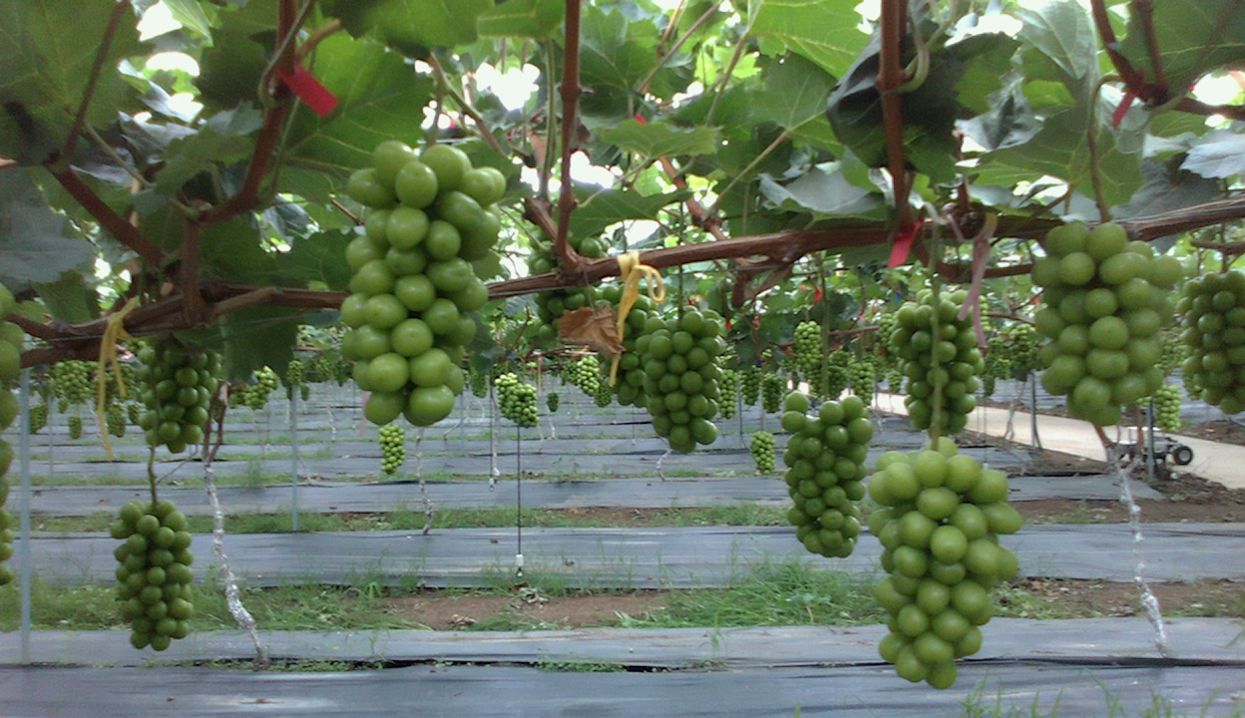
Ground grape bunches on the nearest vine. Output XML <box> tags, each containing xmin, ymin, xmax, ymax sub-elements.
<box><xmin>1034</xmin><ymin>221</ymin><xmax>1180</xmax><ymax>425</ymax></box>
<box><xmin>338</xmin><ymin>140</ymin><xmax>505</xmax><ymax>427</ymax></box>
<box><xmin>865</xmin><ymin>439</ymin><xmax>1020</xmax><ymax>689</ymax></box>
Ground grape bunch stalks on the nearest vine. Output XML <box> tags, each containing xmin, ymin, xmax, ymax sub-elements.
<box><xmin>921</xmin><ymin>205</ymin><xmax>940</xmax><ymax>449</ymax></box>
<box><xmin>424</xmin><ymin>81</ymin><xmax>446</xmax><ymax>148</ymax></box>
<box><xmin>1088</xmin><ymin>73</ymin><xmax>1116</xmax><ymax>221</ymax></box>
